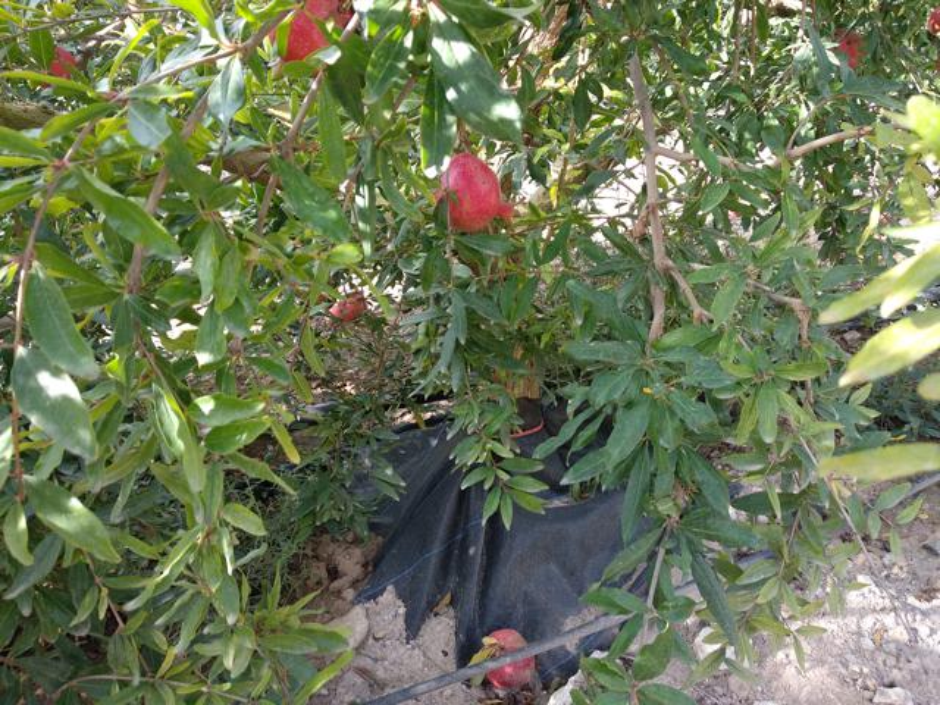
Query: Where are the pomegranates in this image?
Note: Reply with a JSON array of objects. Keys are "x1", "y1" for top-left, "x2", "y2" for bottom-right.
[
  {"x1": 834, "y1": 26, "x2": 861, "y2": 69},
  {"x1": 51, "y1": 46, "x2": 75, "y2": 78},
  {"x1": 924, "y1": 6, "x2": 940, "y2": 35},
  {"x1": 439, "y1": 151, "x2": 514, "y2": 232},
  {"x1": 281, "y1": 0, "x2": 355, "y2": 62}
]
